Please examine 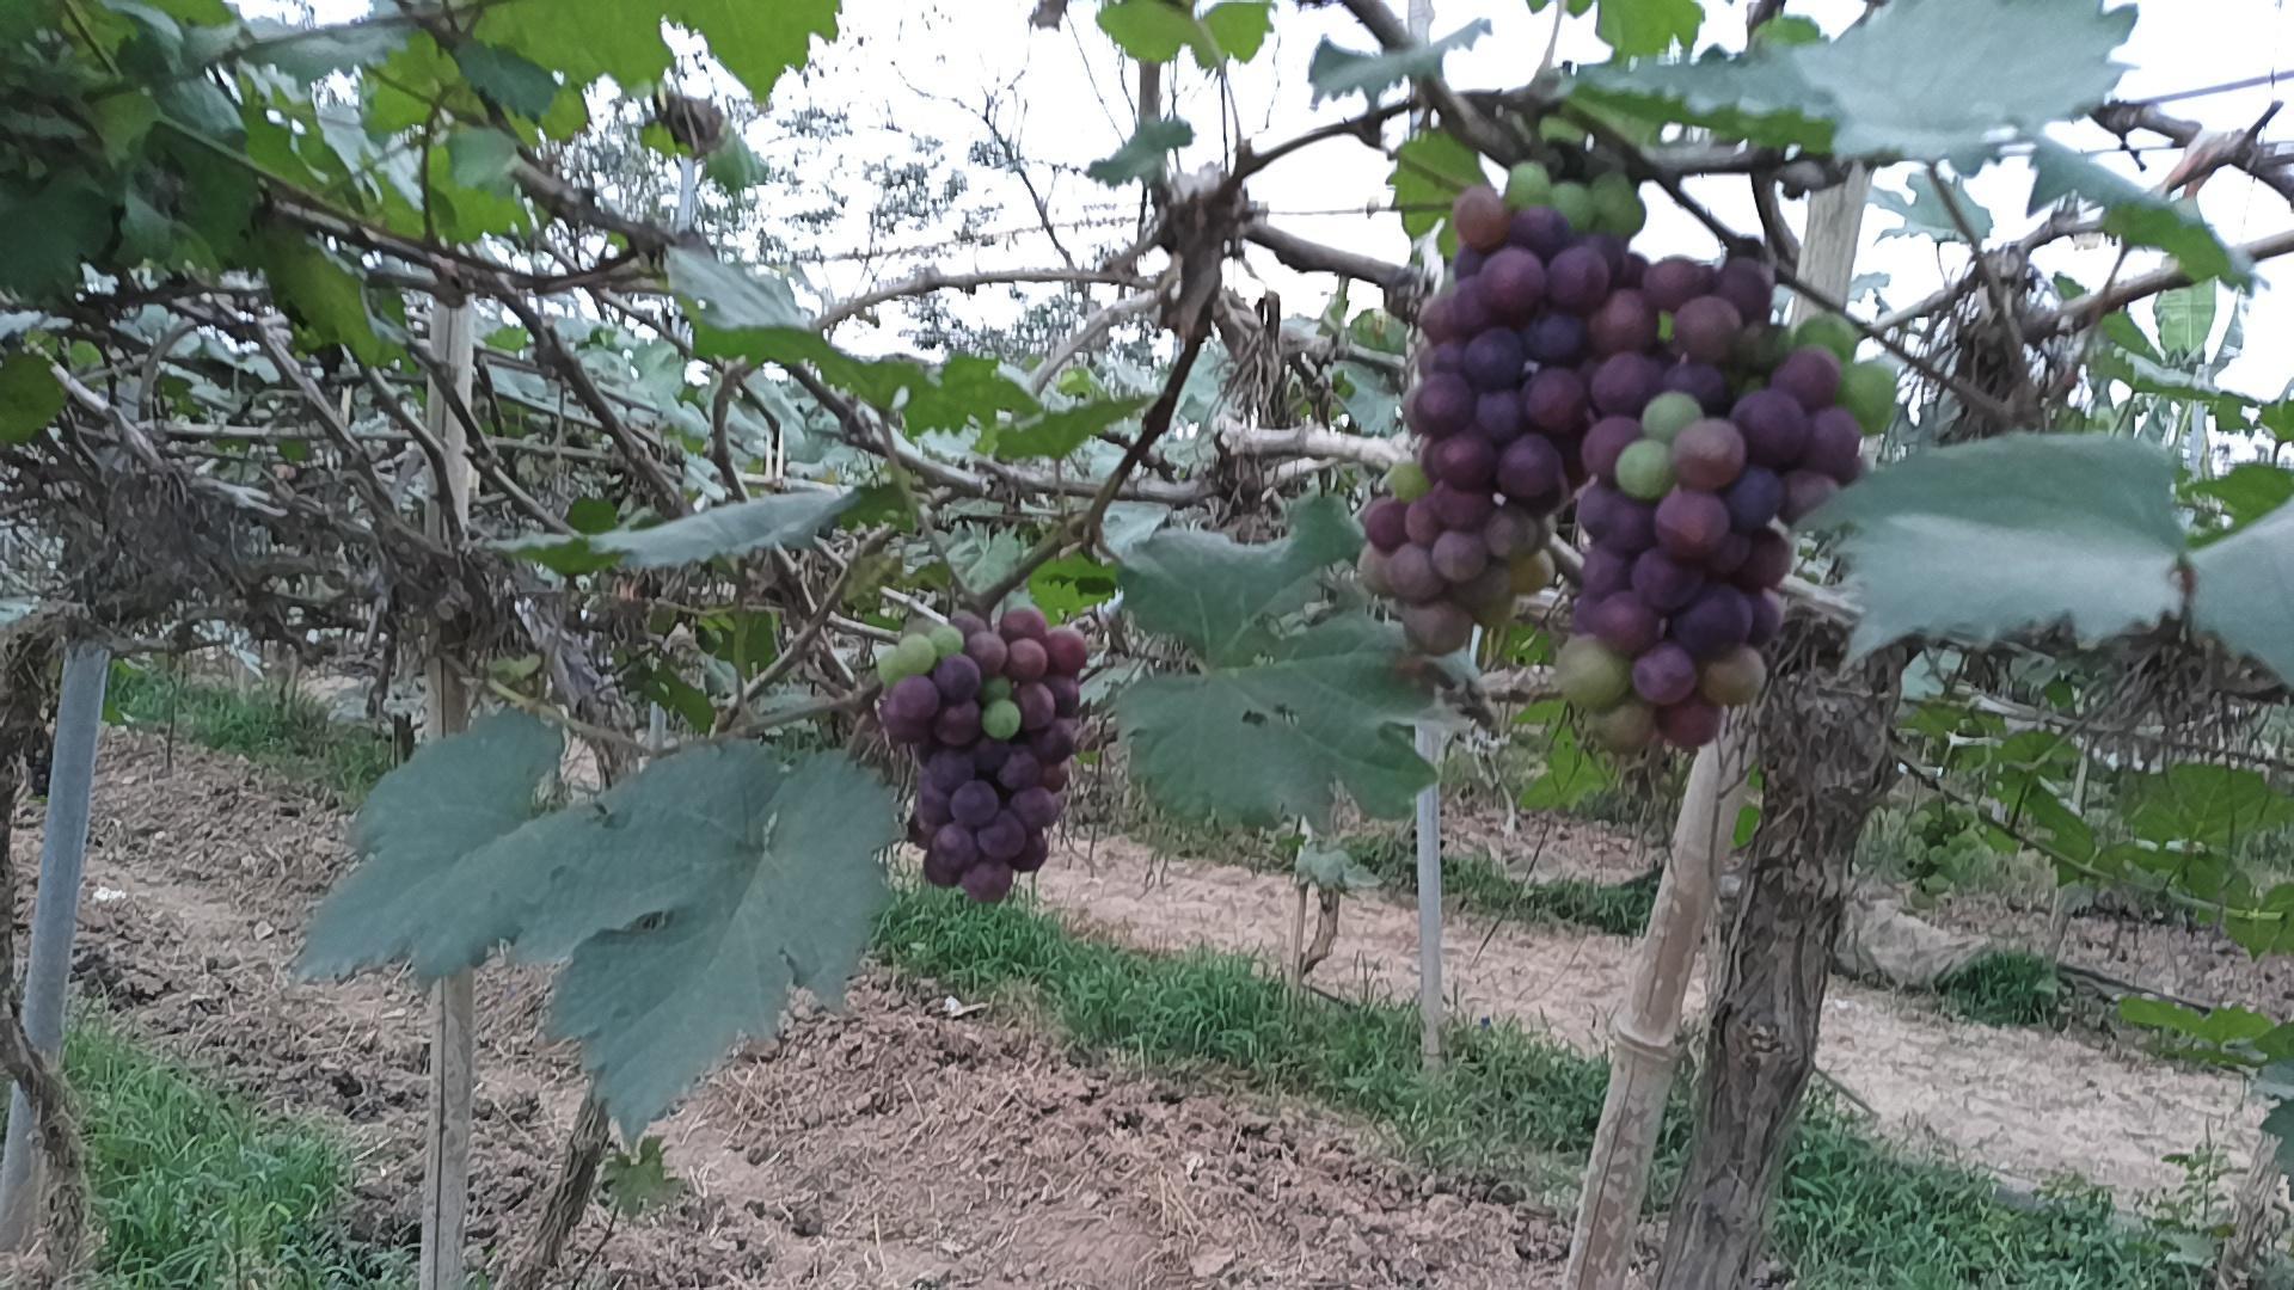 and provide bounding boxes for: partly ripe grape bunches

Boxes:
[1355,159,1649,657]
[876,604,1087,901]
[1557,256,1899,755]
